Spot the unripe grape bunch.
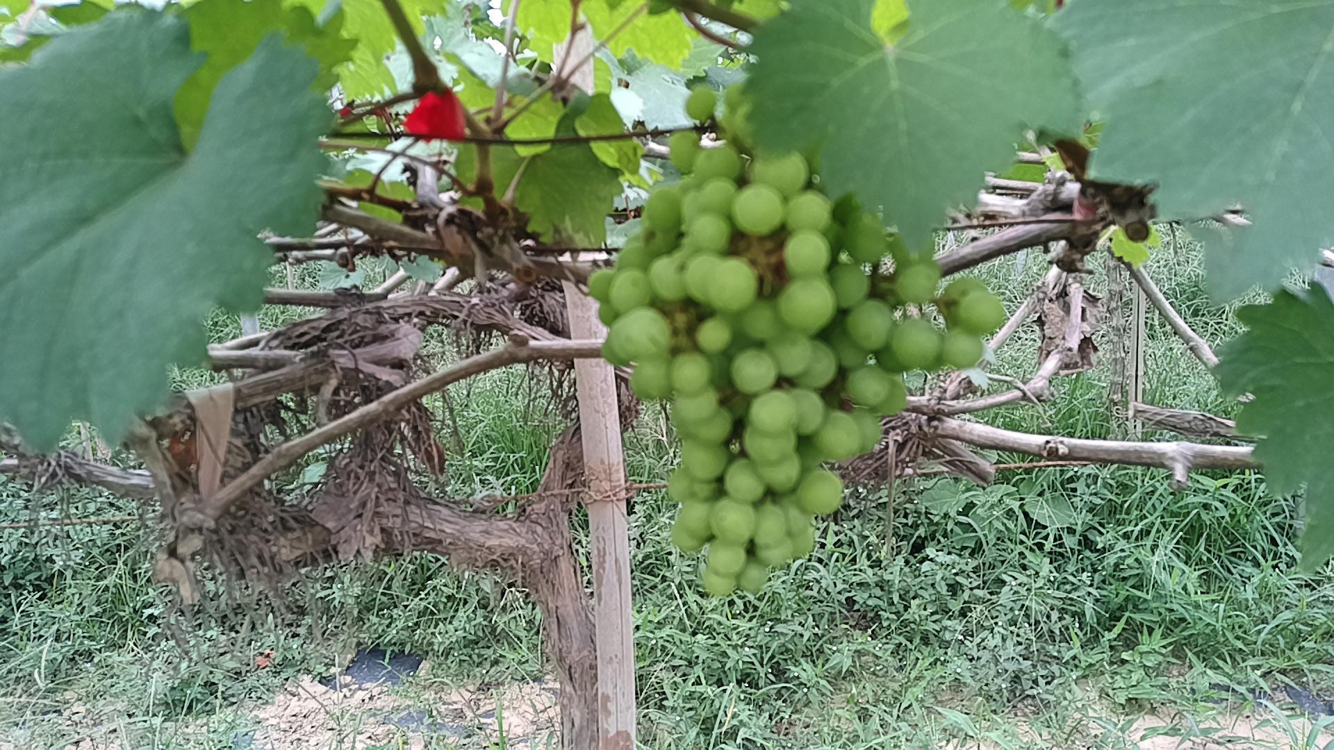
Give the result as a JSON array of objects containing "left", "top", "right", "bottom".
[{"left": 591, "top": 85, "right": 1003, "bottom": 595}]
